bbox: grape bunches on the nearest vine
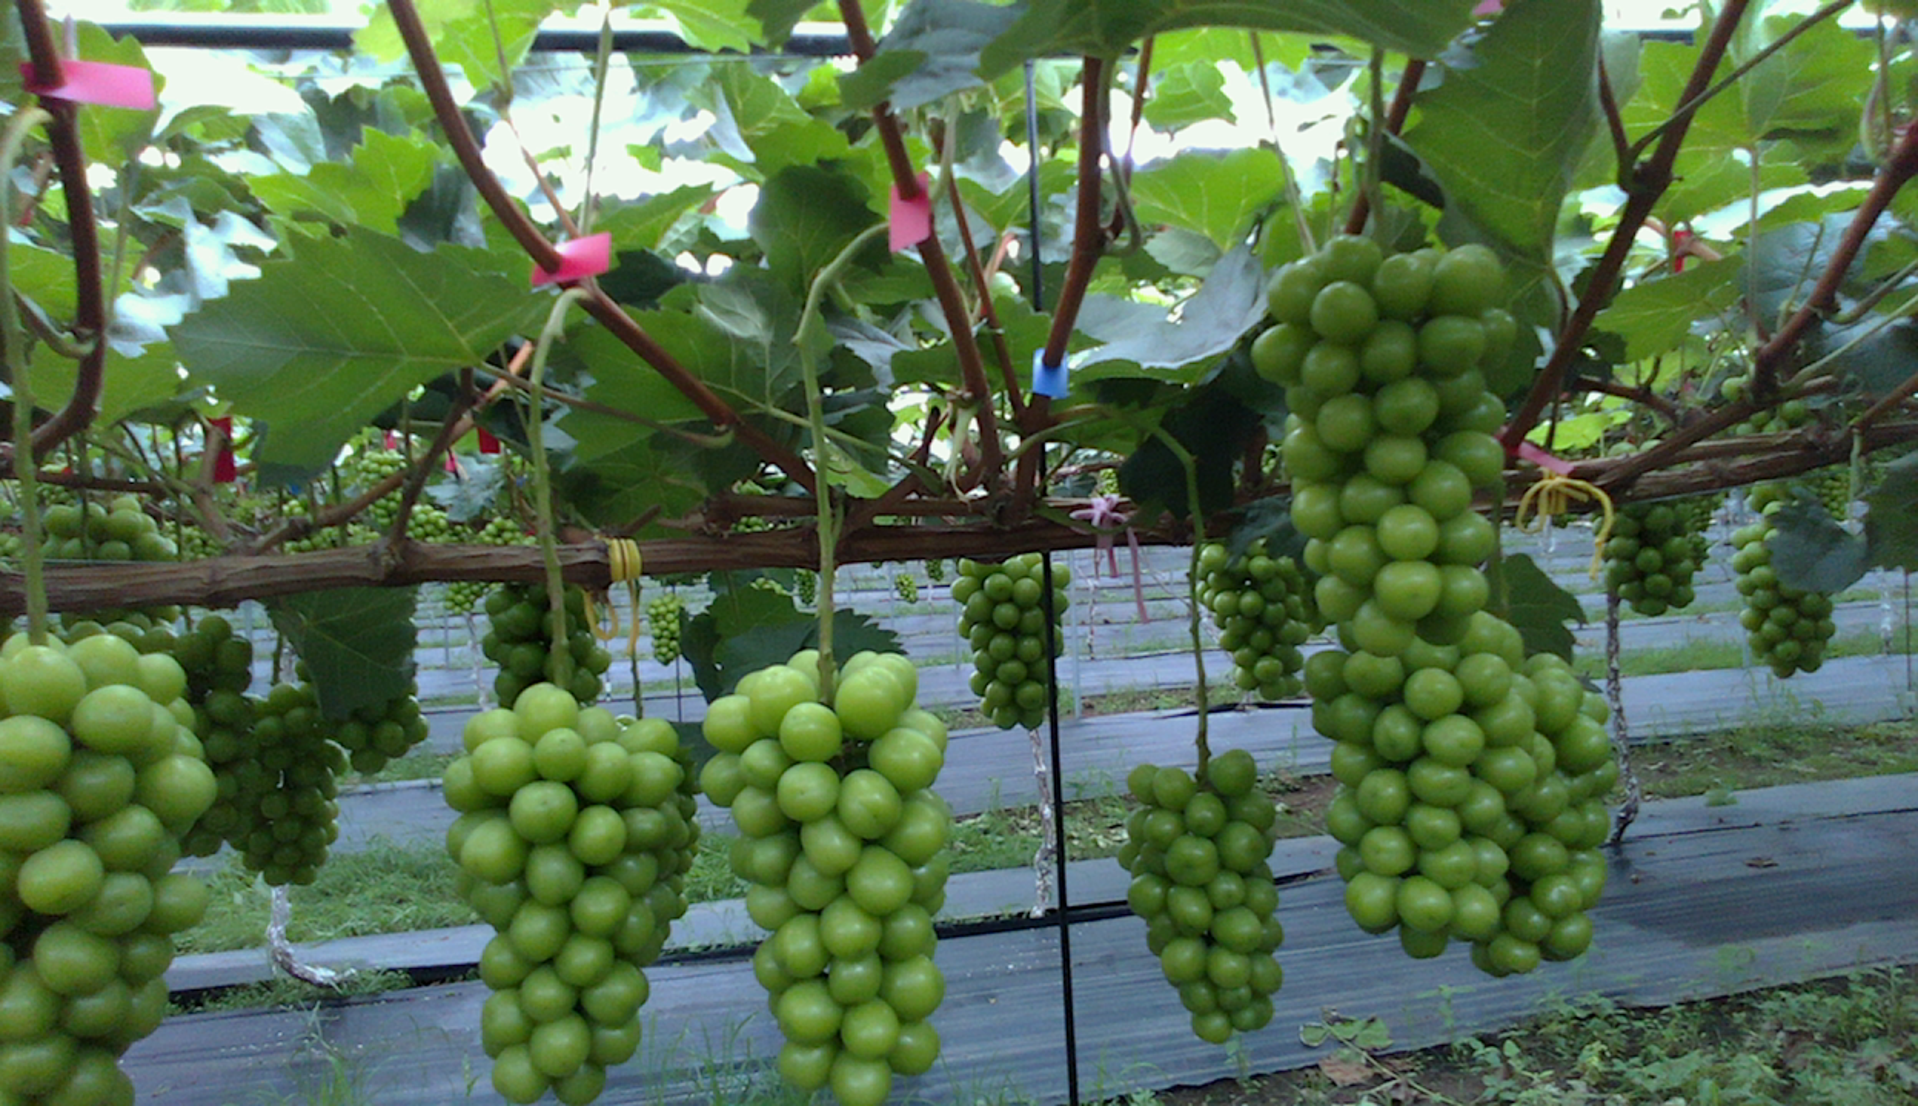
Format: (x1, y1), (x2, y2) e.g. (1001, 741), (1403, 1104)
(1114, 748), (1285, 1046)
(1249, 233), (1517, 659)
(702, 650), (951, 1104)
(440, 680), (684, 1103)
(0, 636), (212, 1104)
(1306, 621), (1537, 962)
(1472, 653), (1615, 982)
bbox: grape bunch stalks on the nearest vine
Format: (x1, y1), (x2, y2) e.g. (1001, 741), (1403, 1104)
(791, 223), (888, 705)
(1491, 481), (1505, 616)
(0, 108), (49, 645)
(1363, 49), (1388, 255)
(529, 292), (576, 690)
(1064, 402), (1211, 788)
